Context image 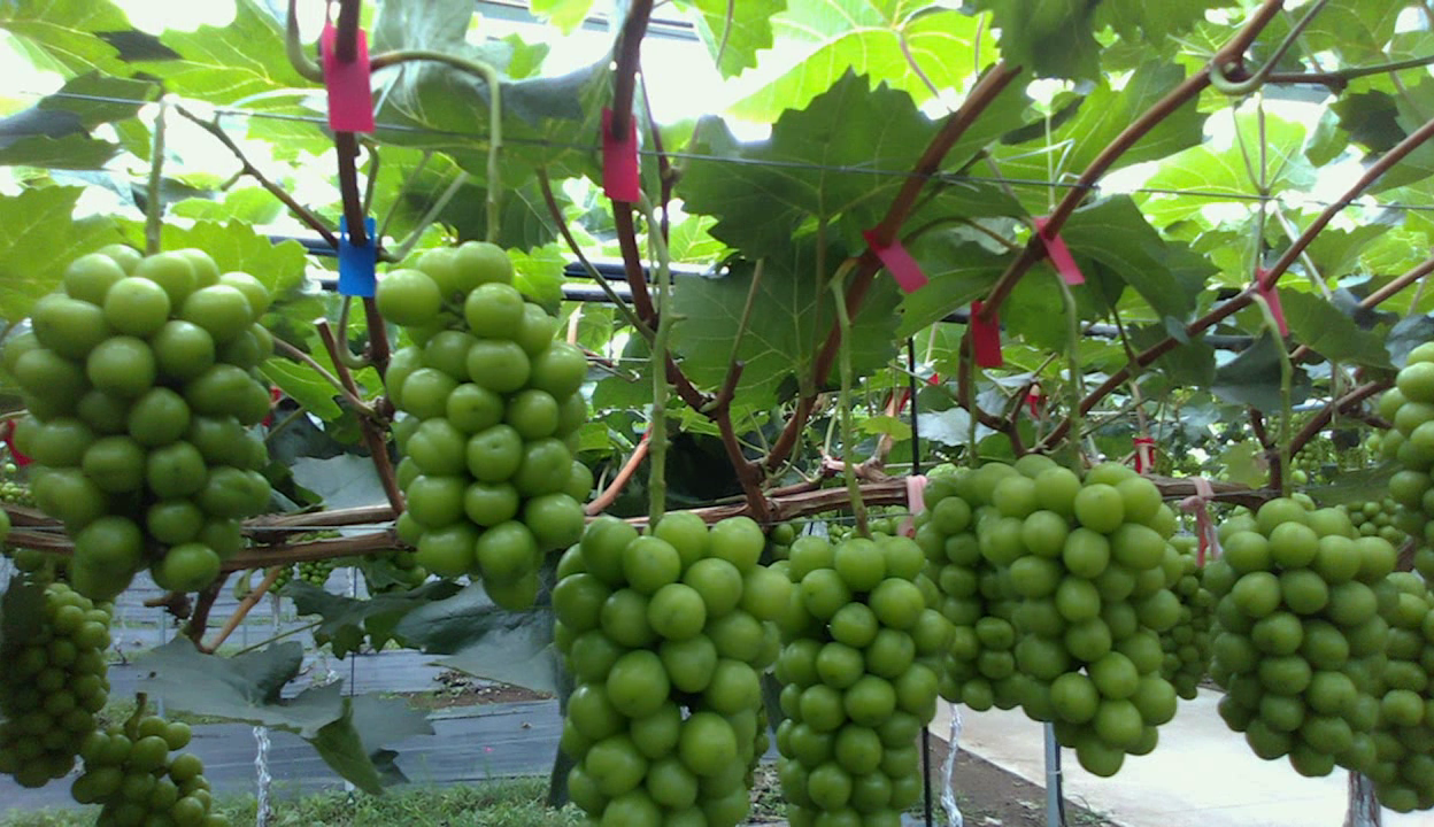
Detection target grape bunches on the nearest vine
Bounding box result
[549,511,794,826]
[972,454,1182,779]
[911,467,1026,712]
[772,532,955,826]
[3,245,273,602]
[373,240,592,613]
[1203,493,1400,778]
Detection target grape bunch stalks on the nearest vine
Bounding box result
[634,186,686,532]
[1250,292,1293,497]
[967,334,979,469]
[370,48,502,244]
[832,255,873,541]
[1040,256,1081,481]
[144,93,176,256]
